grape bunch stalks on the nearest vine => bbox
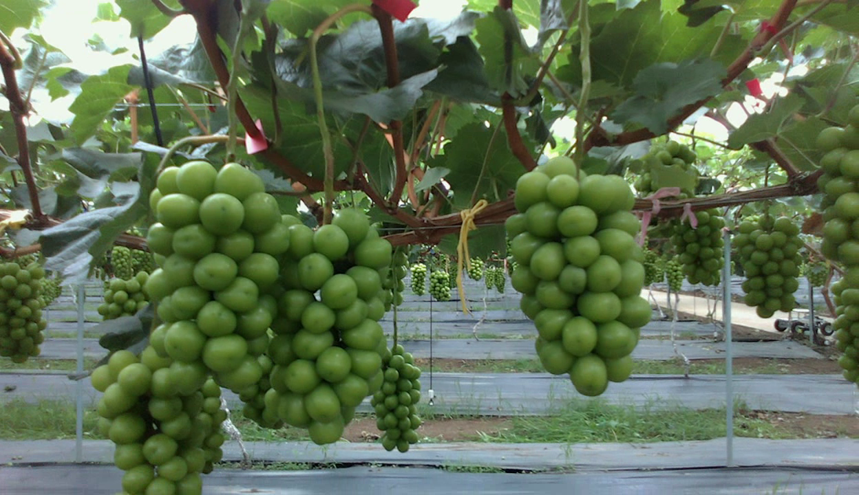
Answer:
[308,3,378,224]
[225,23,246,166]
[572,1,590,168]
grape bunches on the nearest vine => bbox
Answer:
[147,159,290,395]
[815,106,858,321]
[505,157,651,397]
[265,208,391,446]
[90,346,206,494]
[0,263,47,364]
